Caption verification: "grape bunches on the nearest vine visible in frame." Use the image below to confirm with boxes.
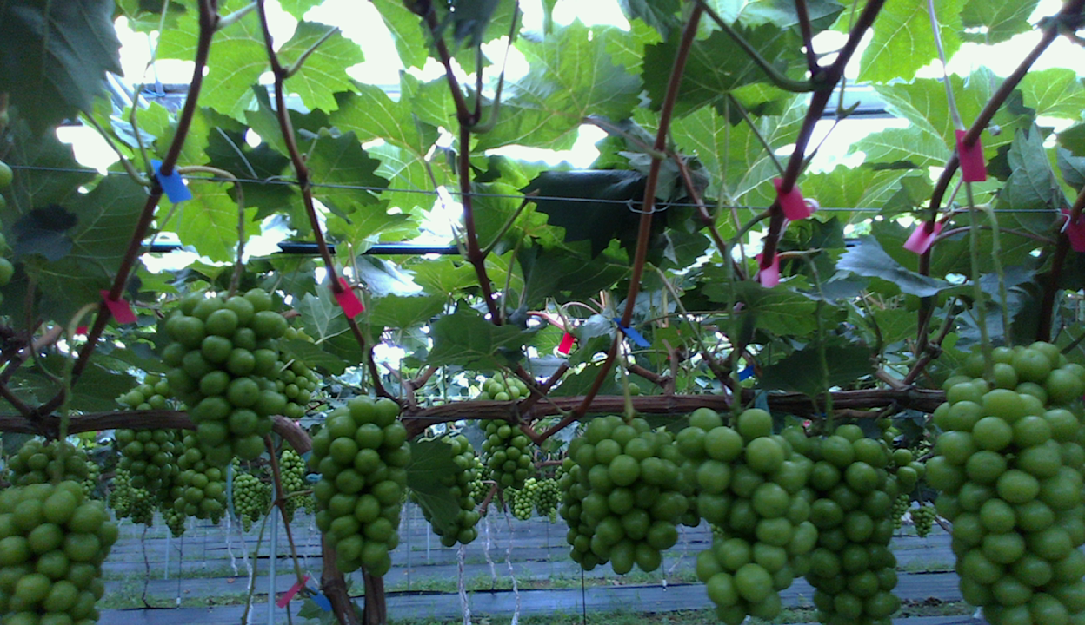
[308,395,410,579]
[994,340,1084,419]
[161,288,290,467]
[925,353,1084,624]
[782,424,899,624]
[0,480,117,624]
[675,408,816,624]
[567,415,691,576]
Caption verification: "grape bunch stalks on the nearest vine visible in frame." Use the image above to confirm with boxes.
[54,303,95,481]
[781,249,832,435]
[723,214,762,424]
[616,332,636,419]
[978,203,1012,345]
[177,166,245,299]
[966,183,996,391]
[349,283,371,392]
